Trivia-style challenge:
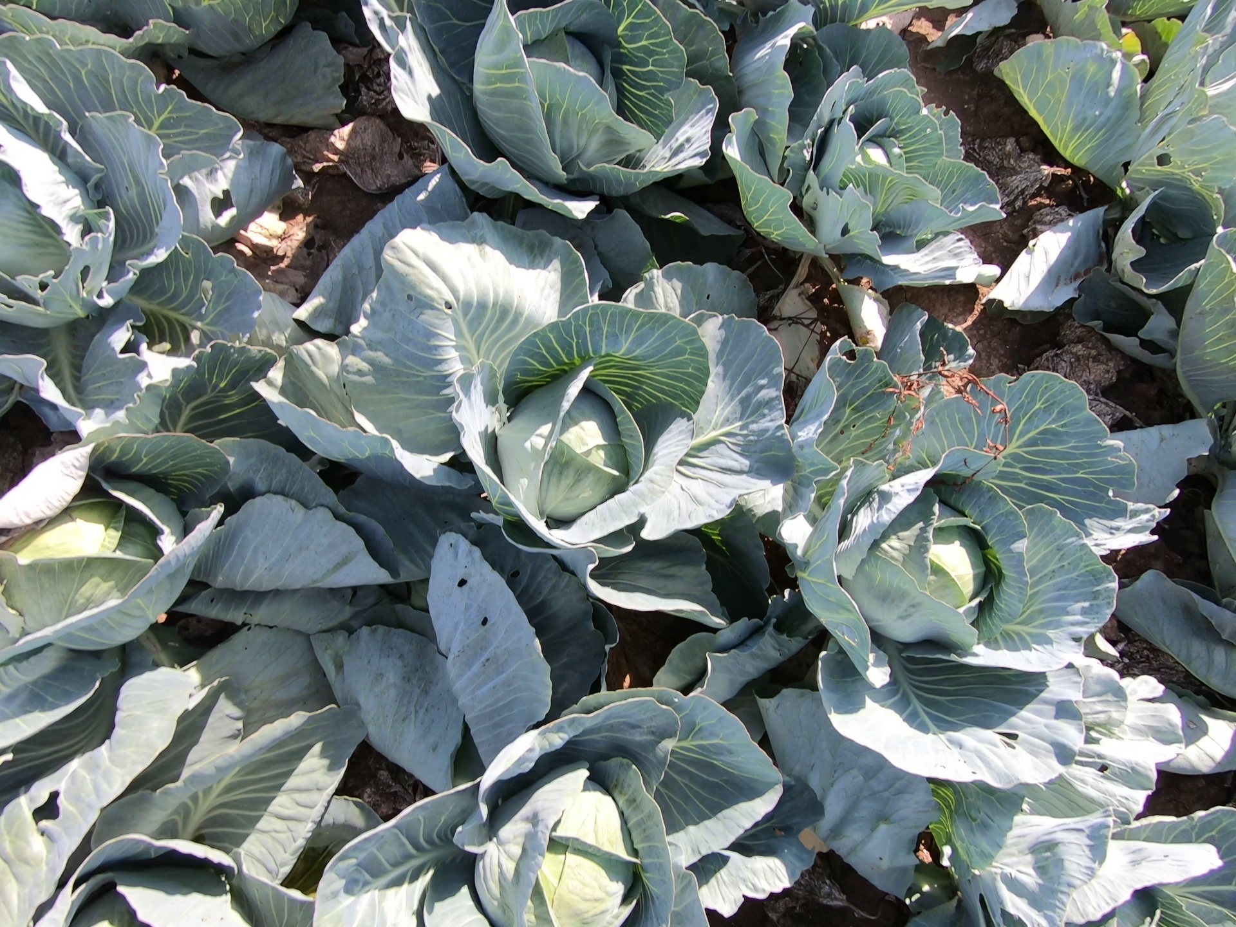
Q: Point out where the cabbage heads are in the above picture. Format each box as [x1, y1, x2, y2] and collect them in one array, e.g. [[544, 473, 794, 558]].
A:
[[495, 383, 635, 519], [0, 491, 169, 649], [859, 496, 986, 621], [511, 27, 617, 165], [70, 881, 252, 926], [2, 125, 83, 282], [478, 775, 638, 926], [845, 140, 895, 200], [1002, 851, 1170, 926]]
